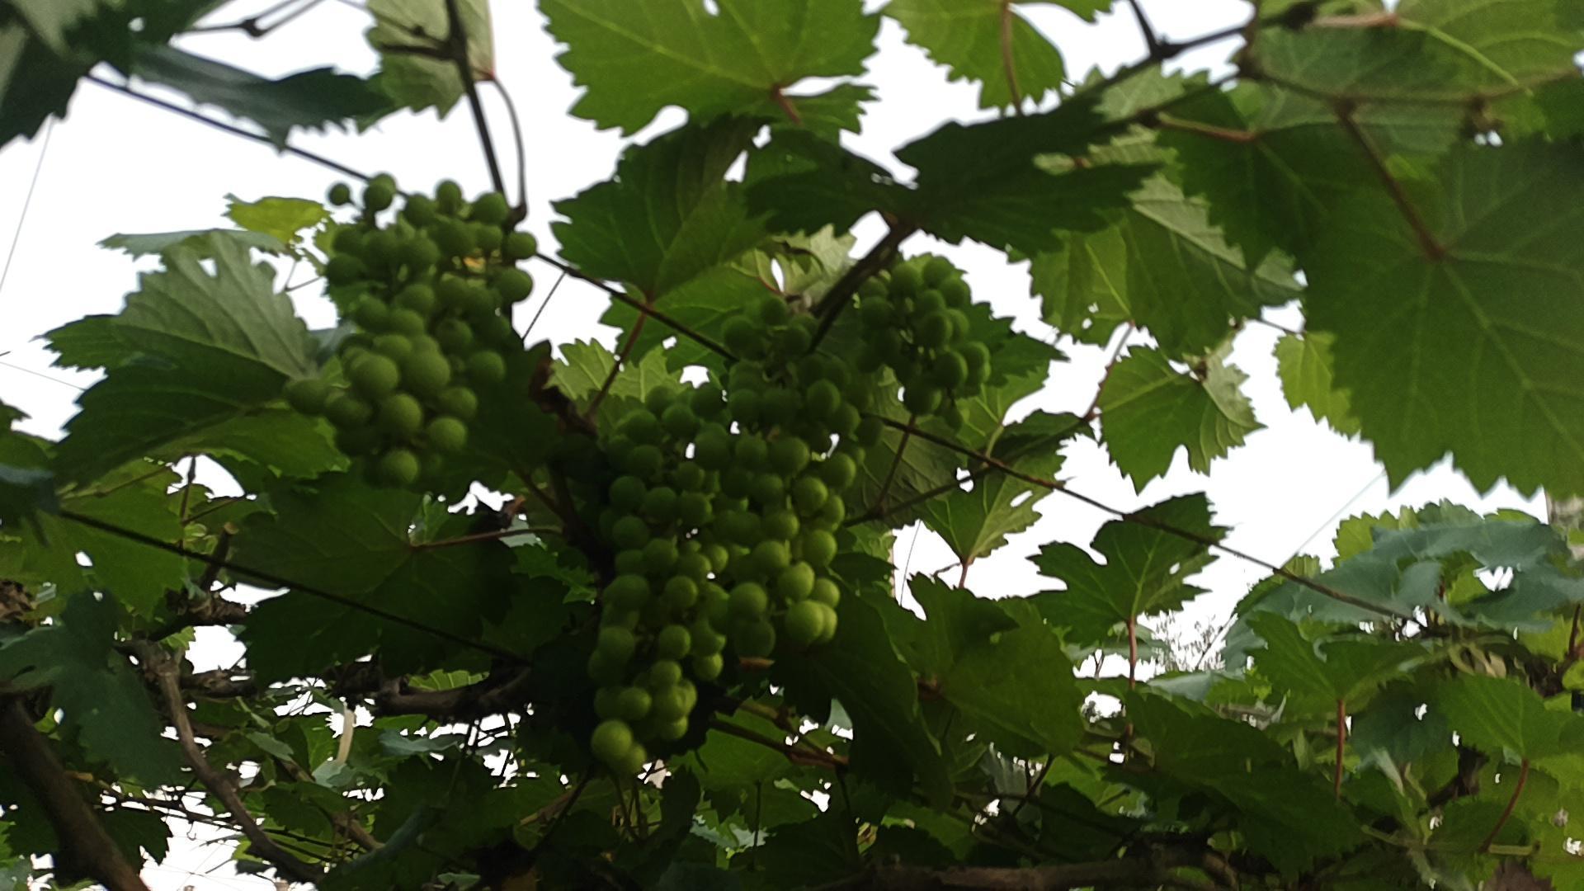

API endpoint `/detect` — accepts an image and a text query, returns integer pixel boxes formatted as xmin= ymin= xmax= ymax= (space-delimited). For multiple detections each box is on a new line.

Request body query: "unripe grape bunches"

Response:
xmin=856 ymin=255 xmax=990 ymax=424
xmin=589 ymin=305 xmax=880 ymax=776
xmin=285 ymin=175 xmax=536 ymax=485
